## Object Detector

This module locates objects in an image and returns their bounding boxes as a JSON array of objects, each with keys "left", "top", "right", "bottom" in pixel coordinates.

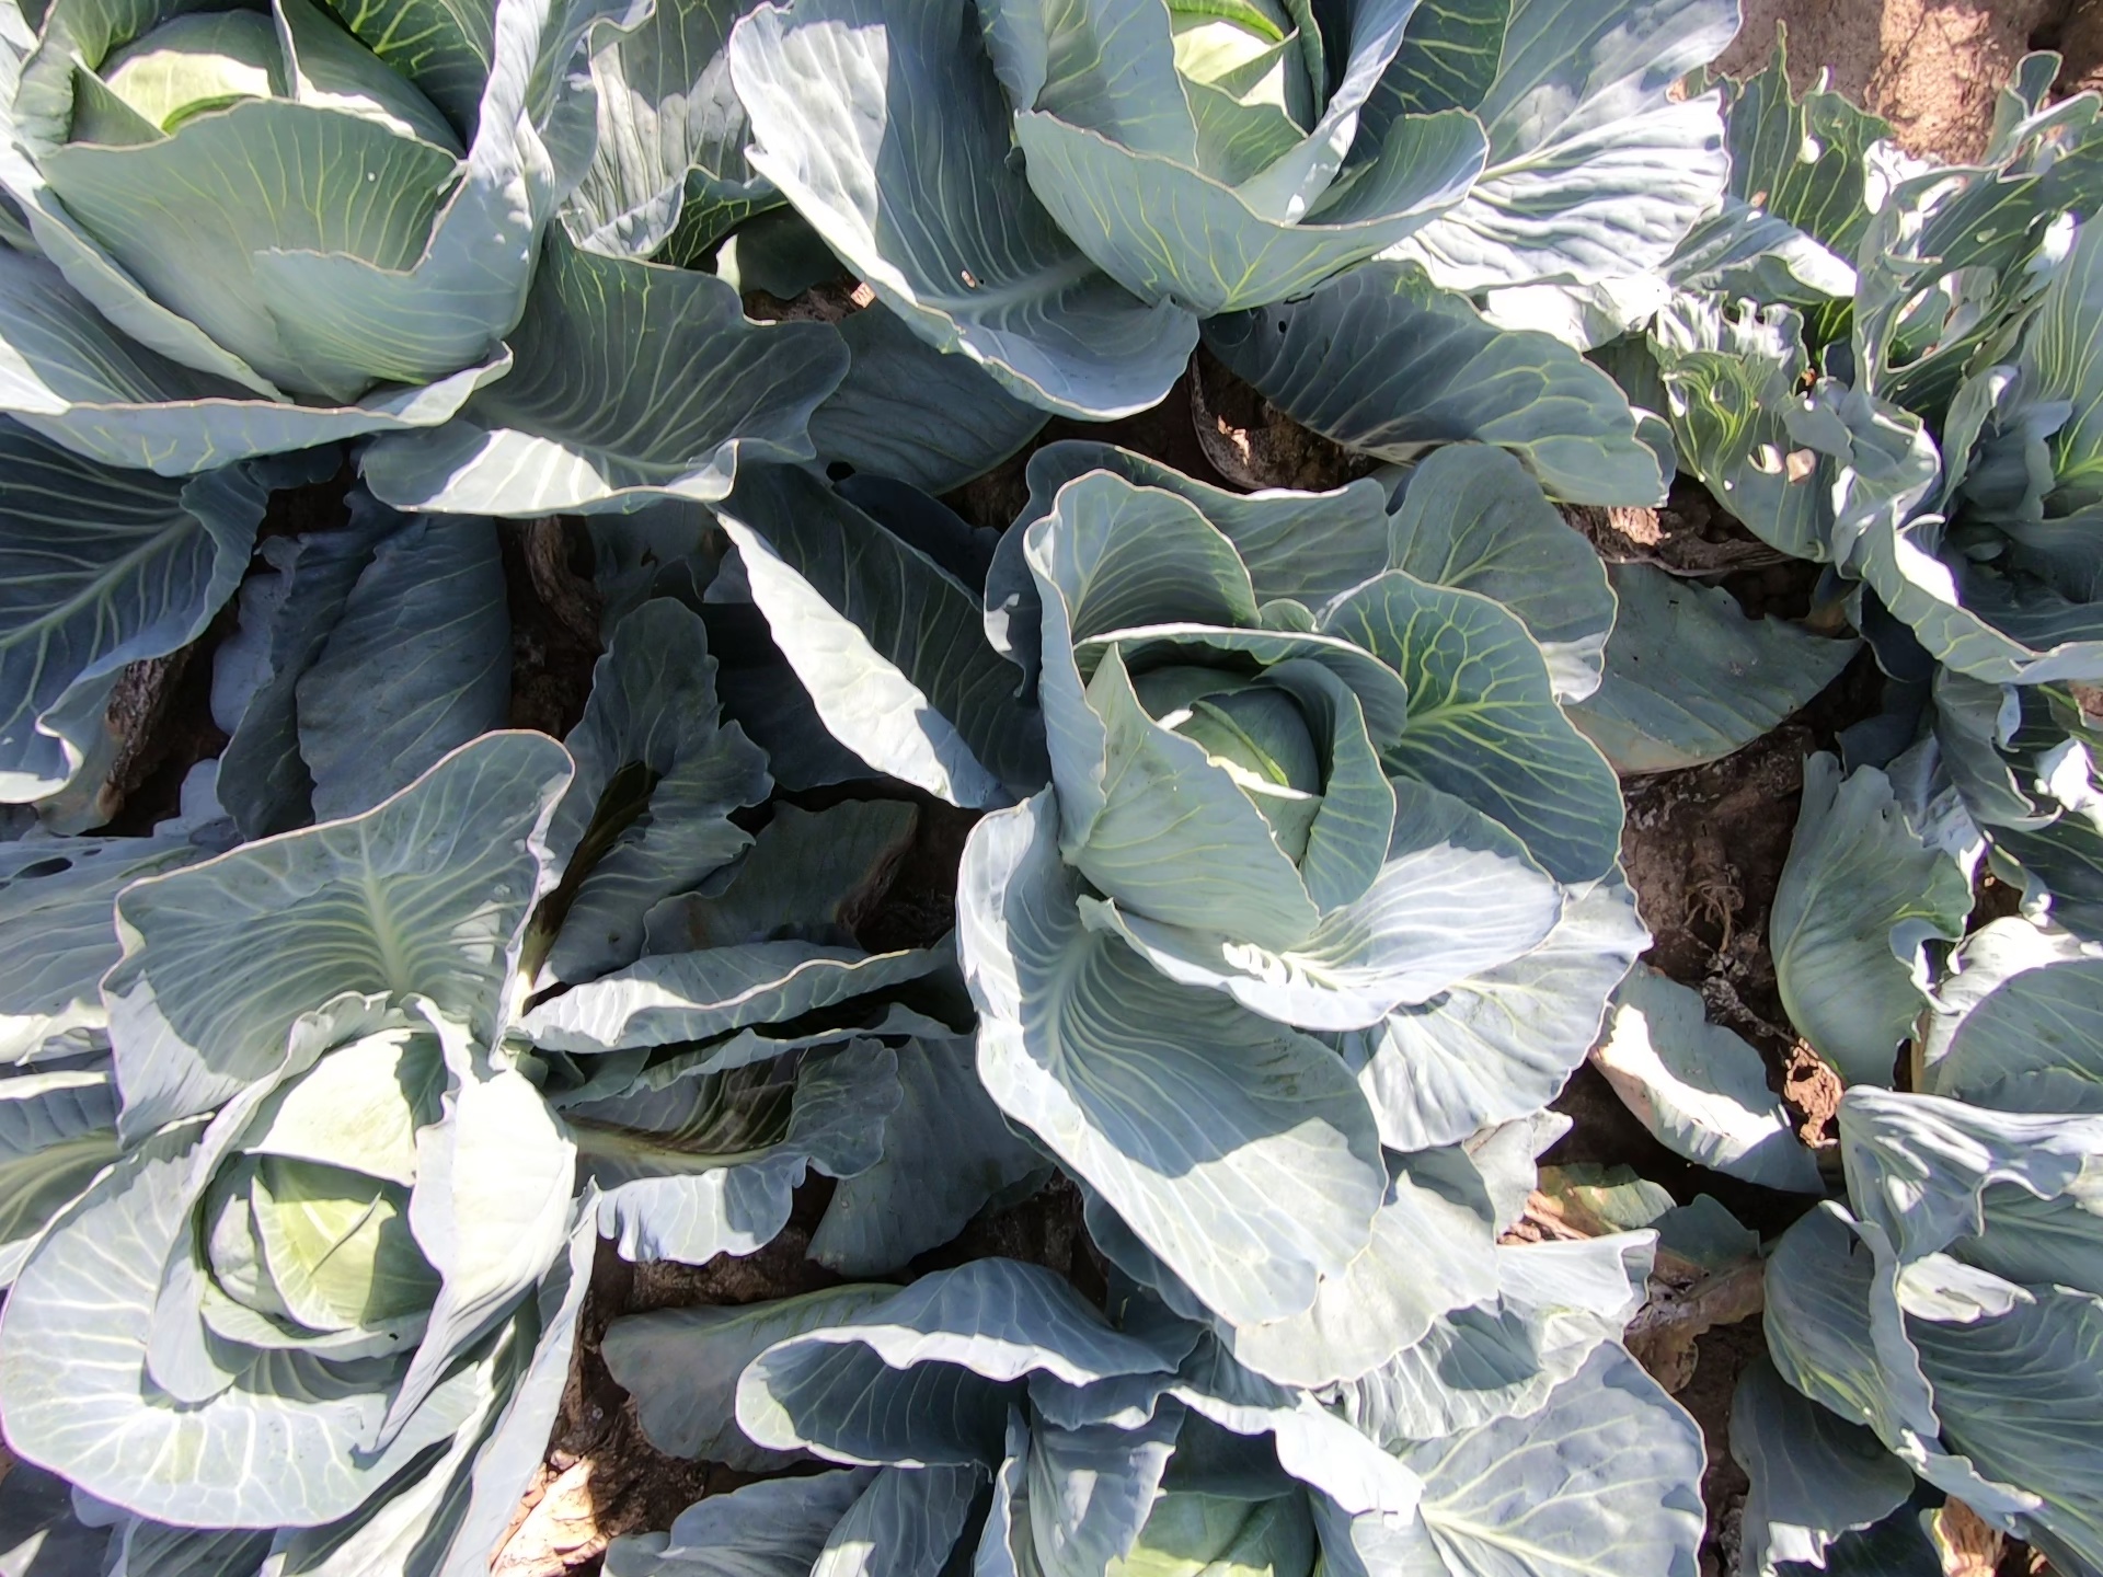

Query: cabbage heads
[
  {"left": 206, "top": 1031, "right": 556, "bottom": 1332},
  {"left": 1091, "top": 668, "right": 1322, "bottom": 874},
  {"left": 1023, "top": 10, "right": 1318, "bottom": 225},
  {"left": 70, "top": 10, "right": 472, "bottom": 381},
  {"left": 1051, "top": 1392, "right": 1325, "bottom": 1570}
]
